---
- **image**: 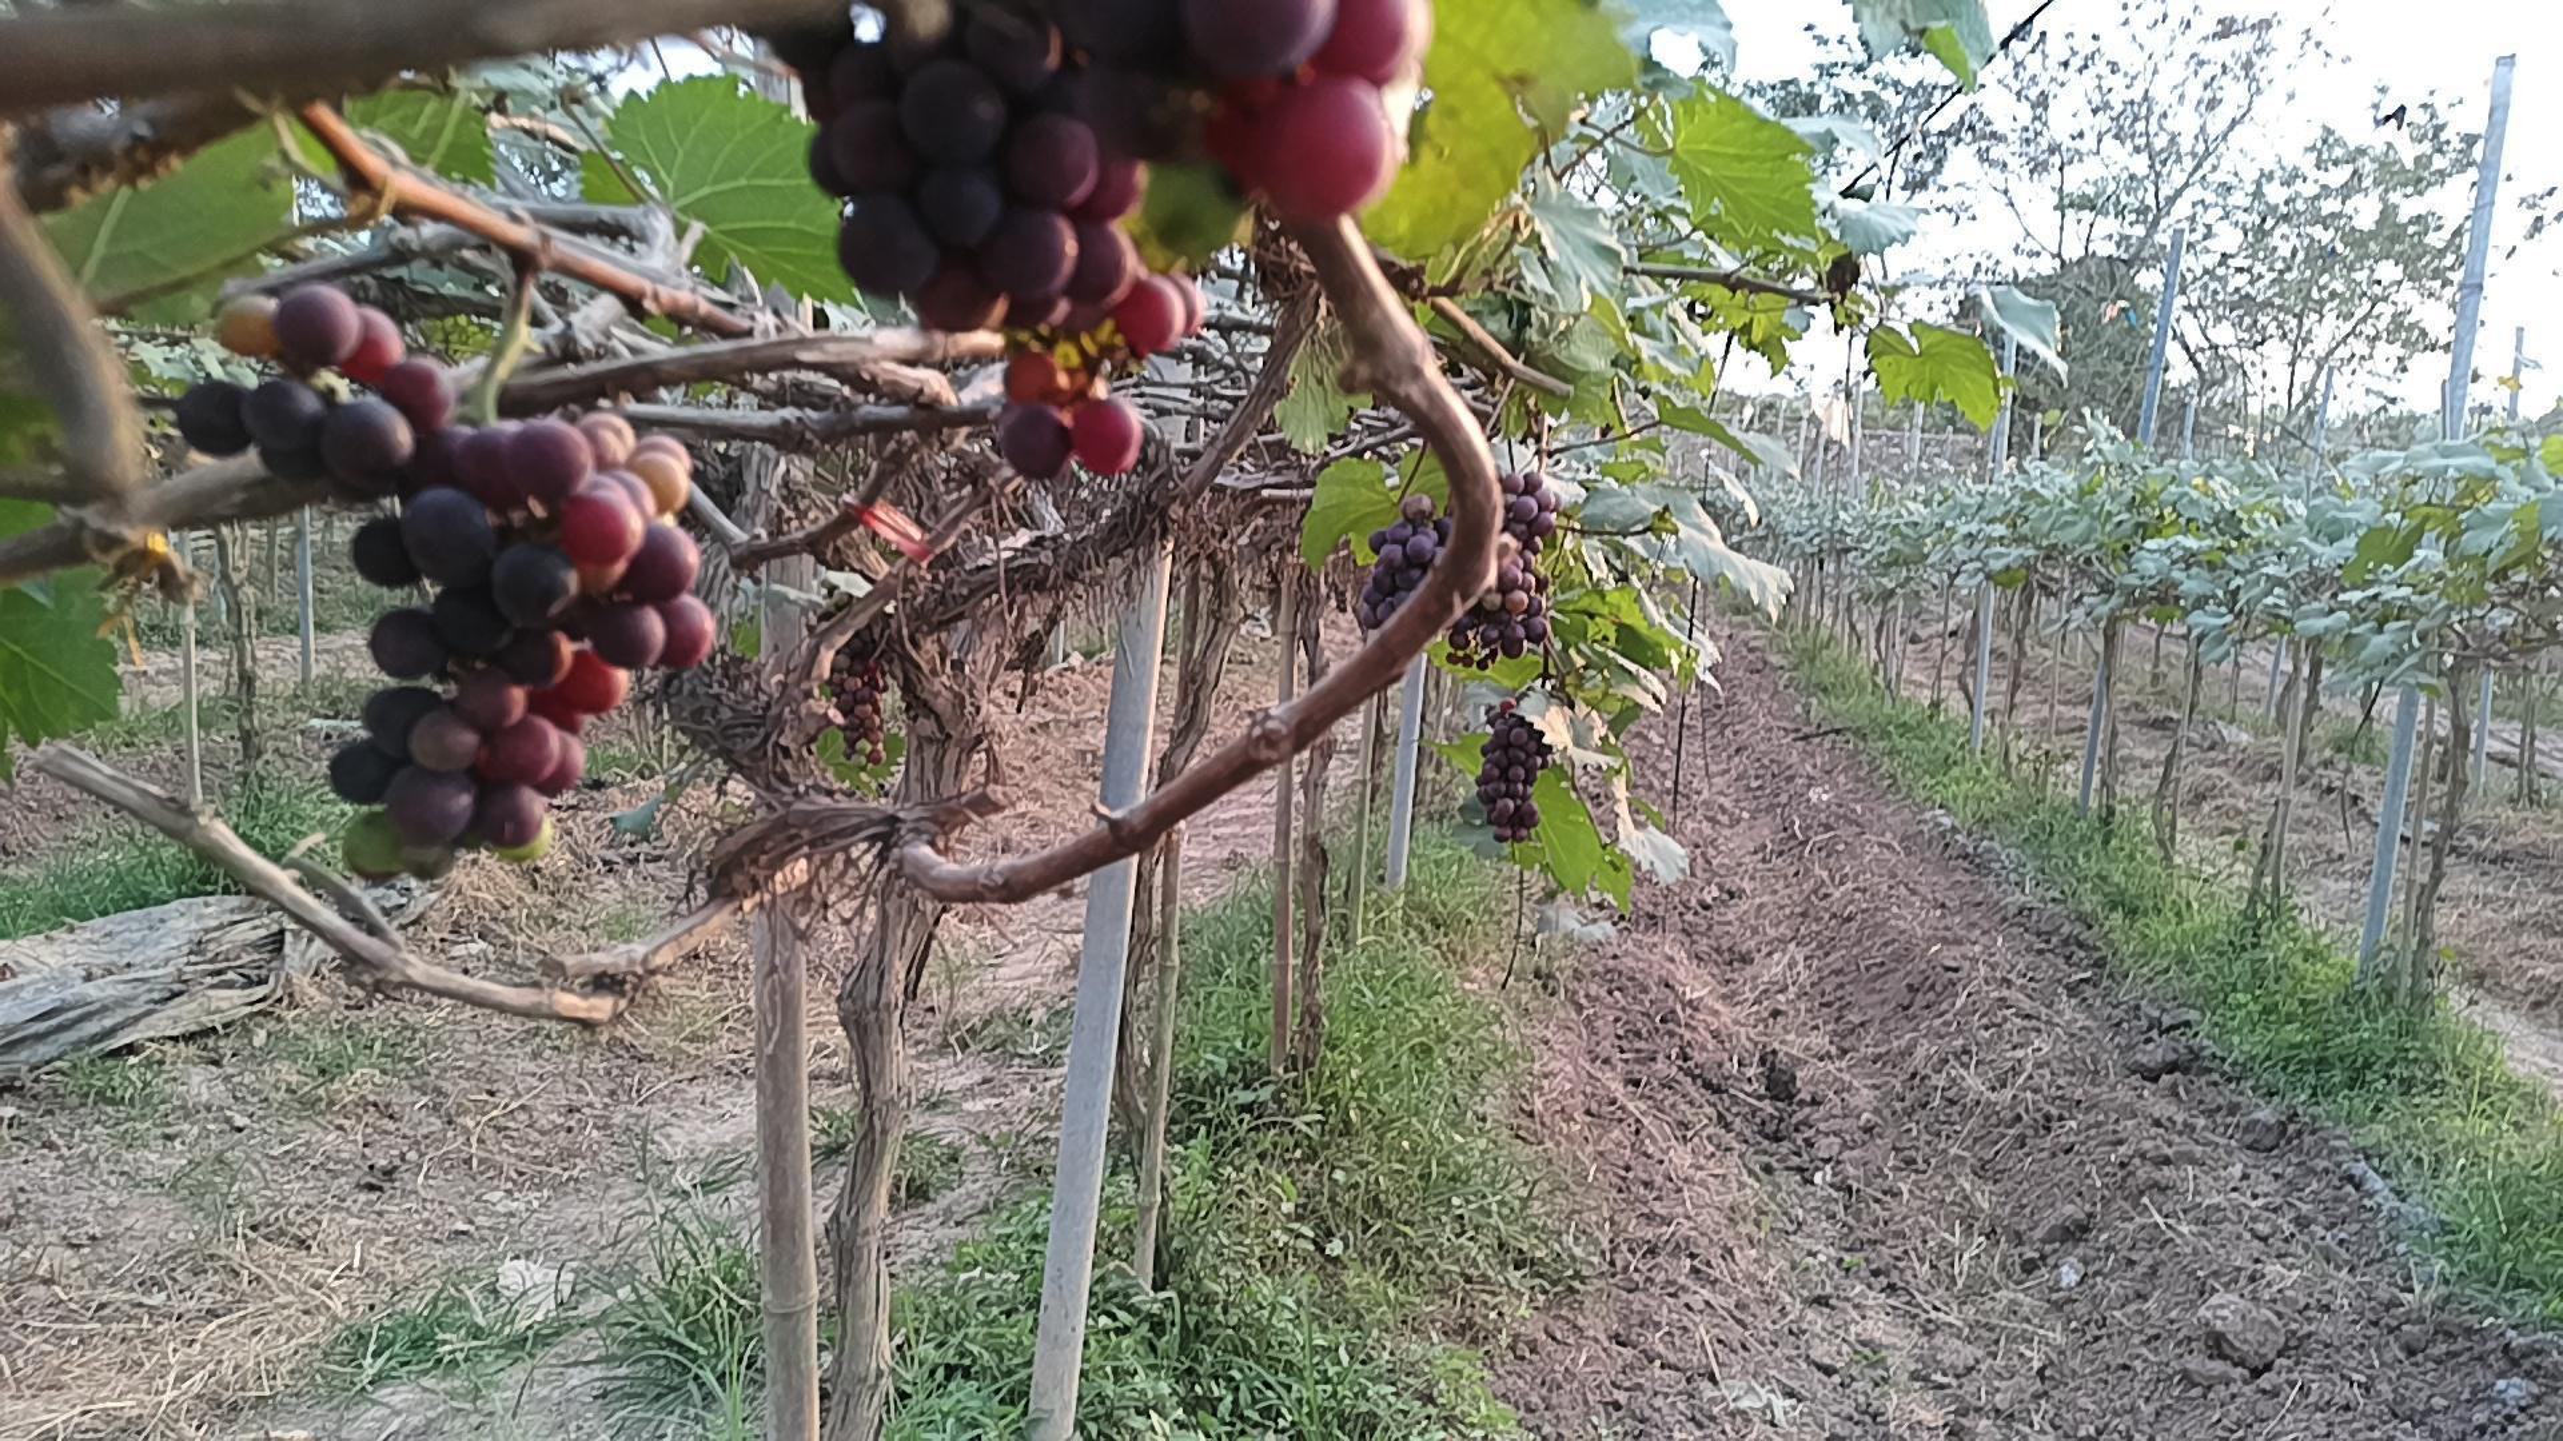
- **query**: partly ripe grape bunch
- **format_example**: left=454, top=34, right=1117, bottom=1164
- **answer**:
left=825, top=632, right=888, bottom=775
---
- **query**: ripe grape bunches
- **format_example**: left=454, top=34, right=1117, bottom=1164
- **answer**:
left=1356, top=474, right=1559, bottom=667
left=766, top=0, right=1430, bottom=479
left=1475, top=699, right=1551, bottom=841
left=175, top=286, right=714, bottom=877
